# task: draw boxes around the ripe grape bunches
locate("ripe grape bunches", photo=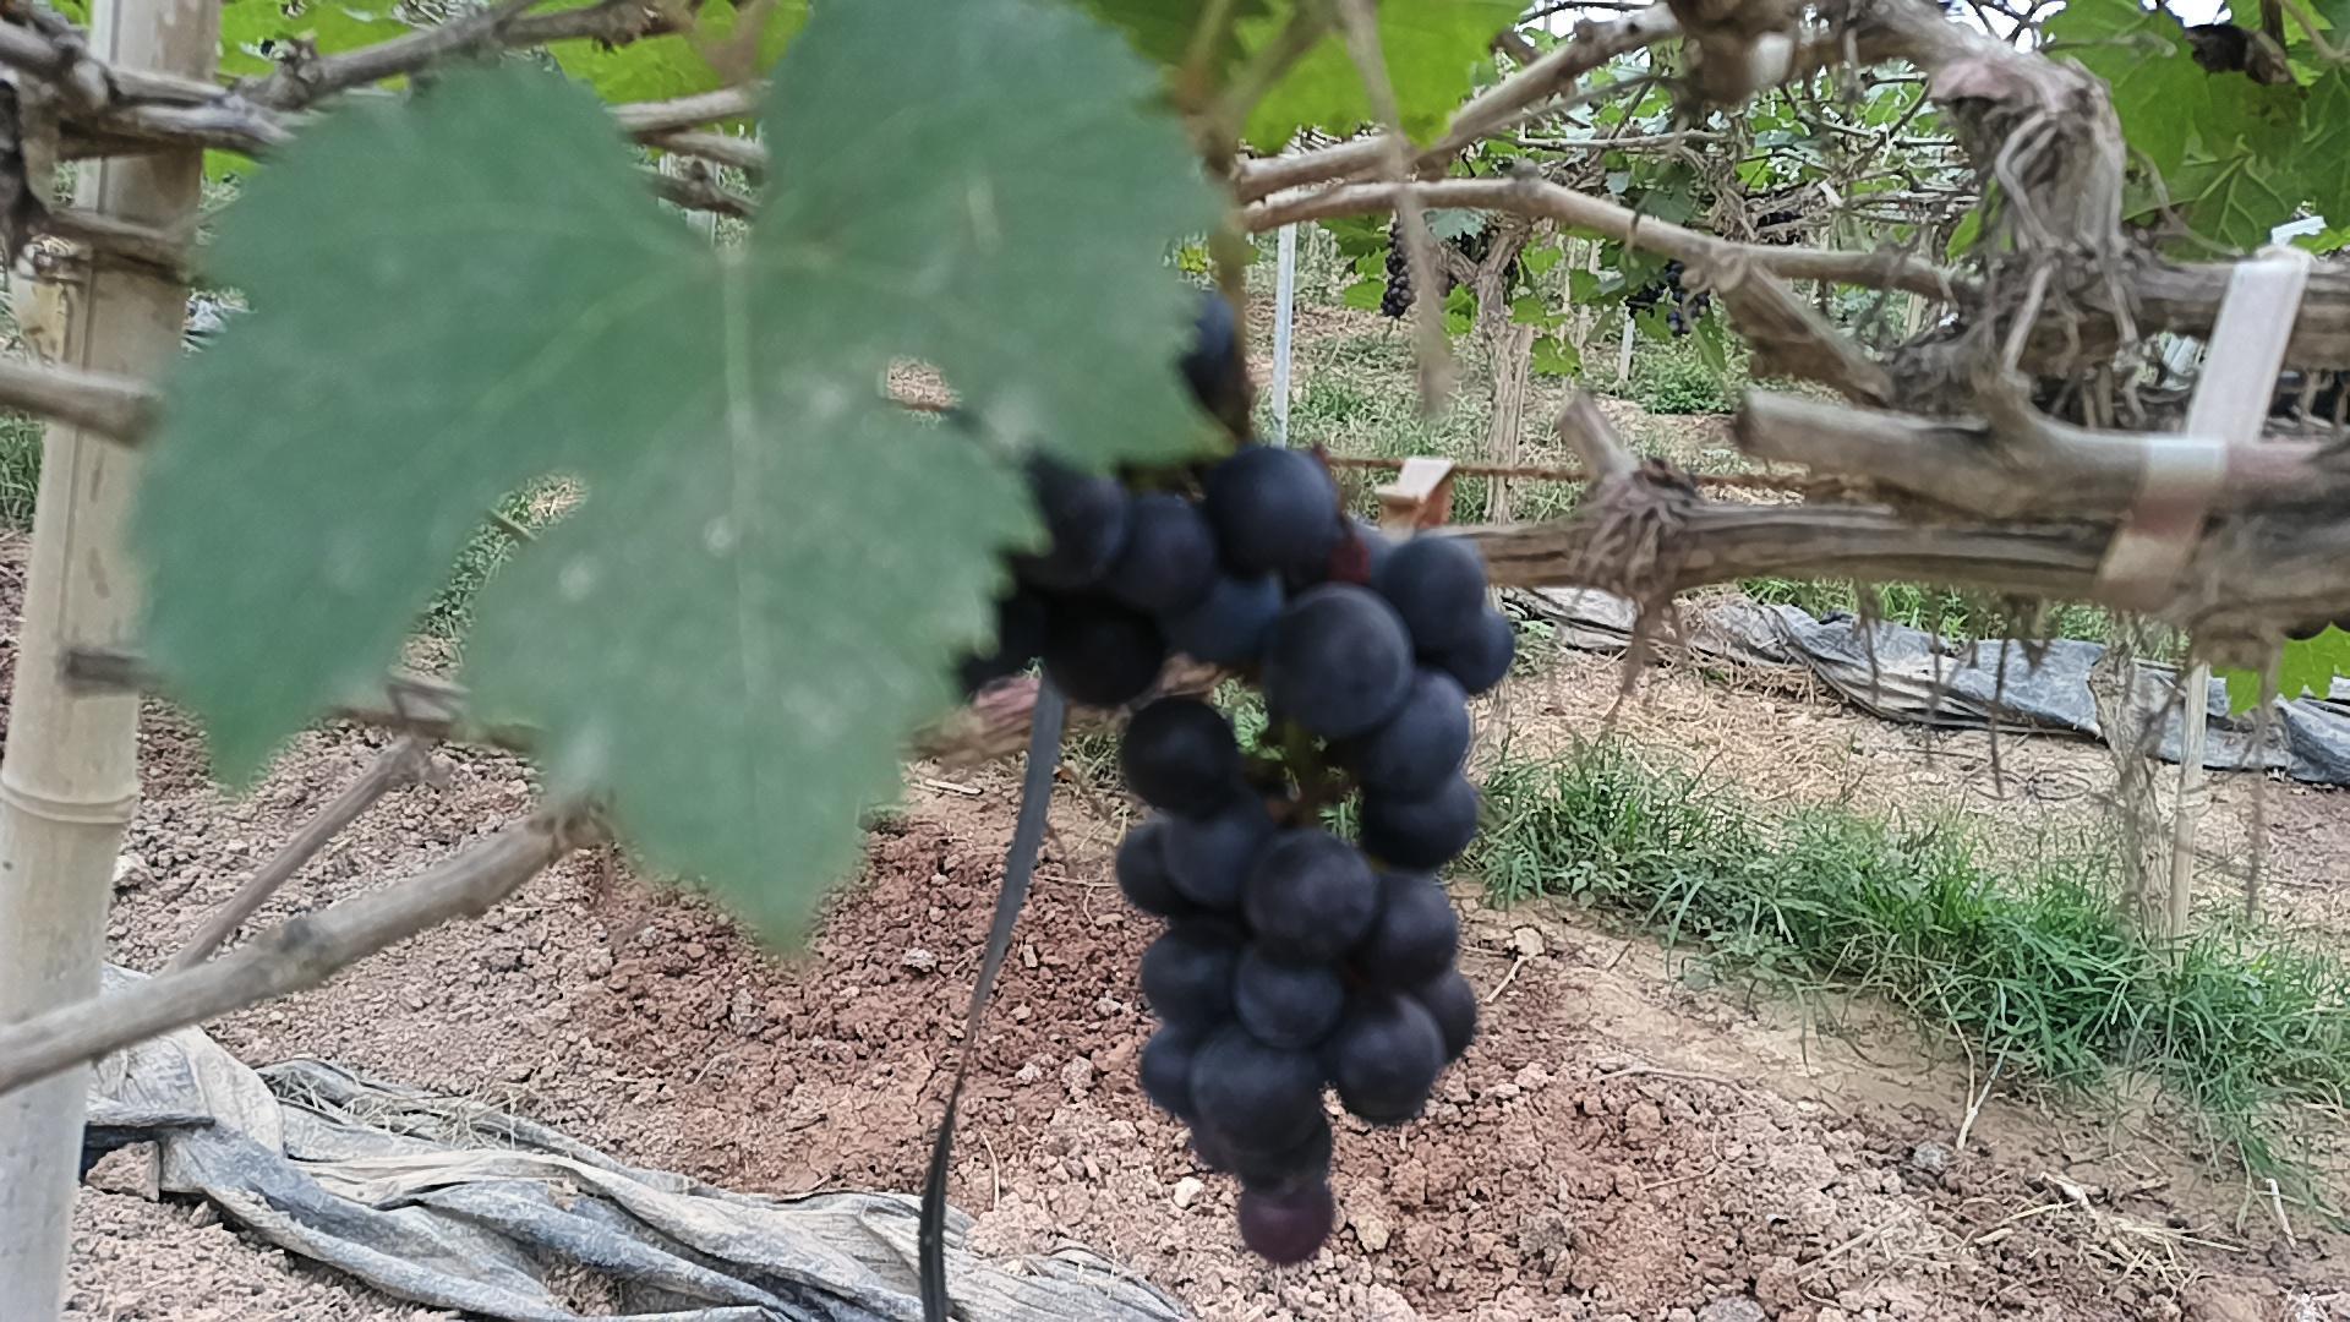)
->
[1378,219,1416,319]
[963,441,1512,1263]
